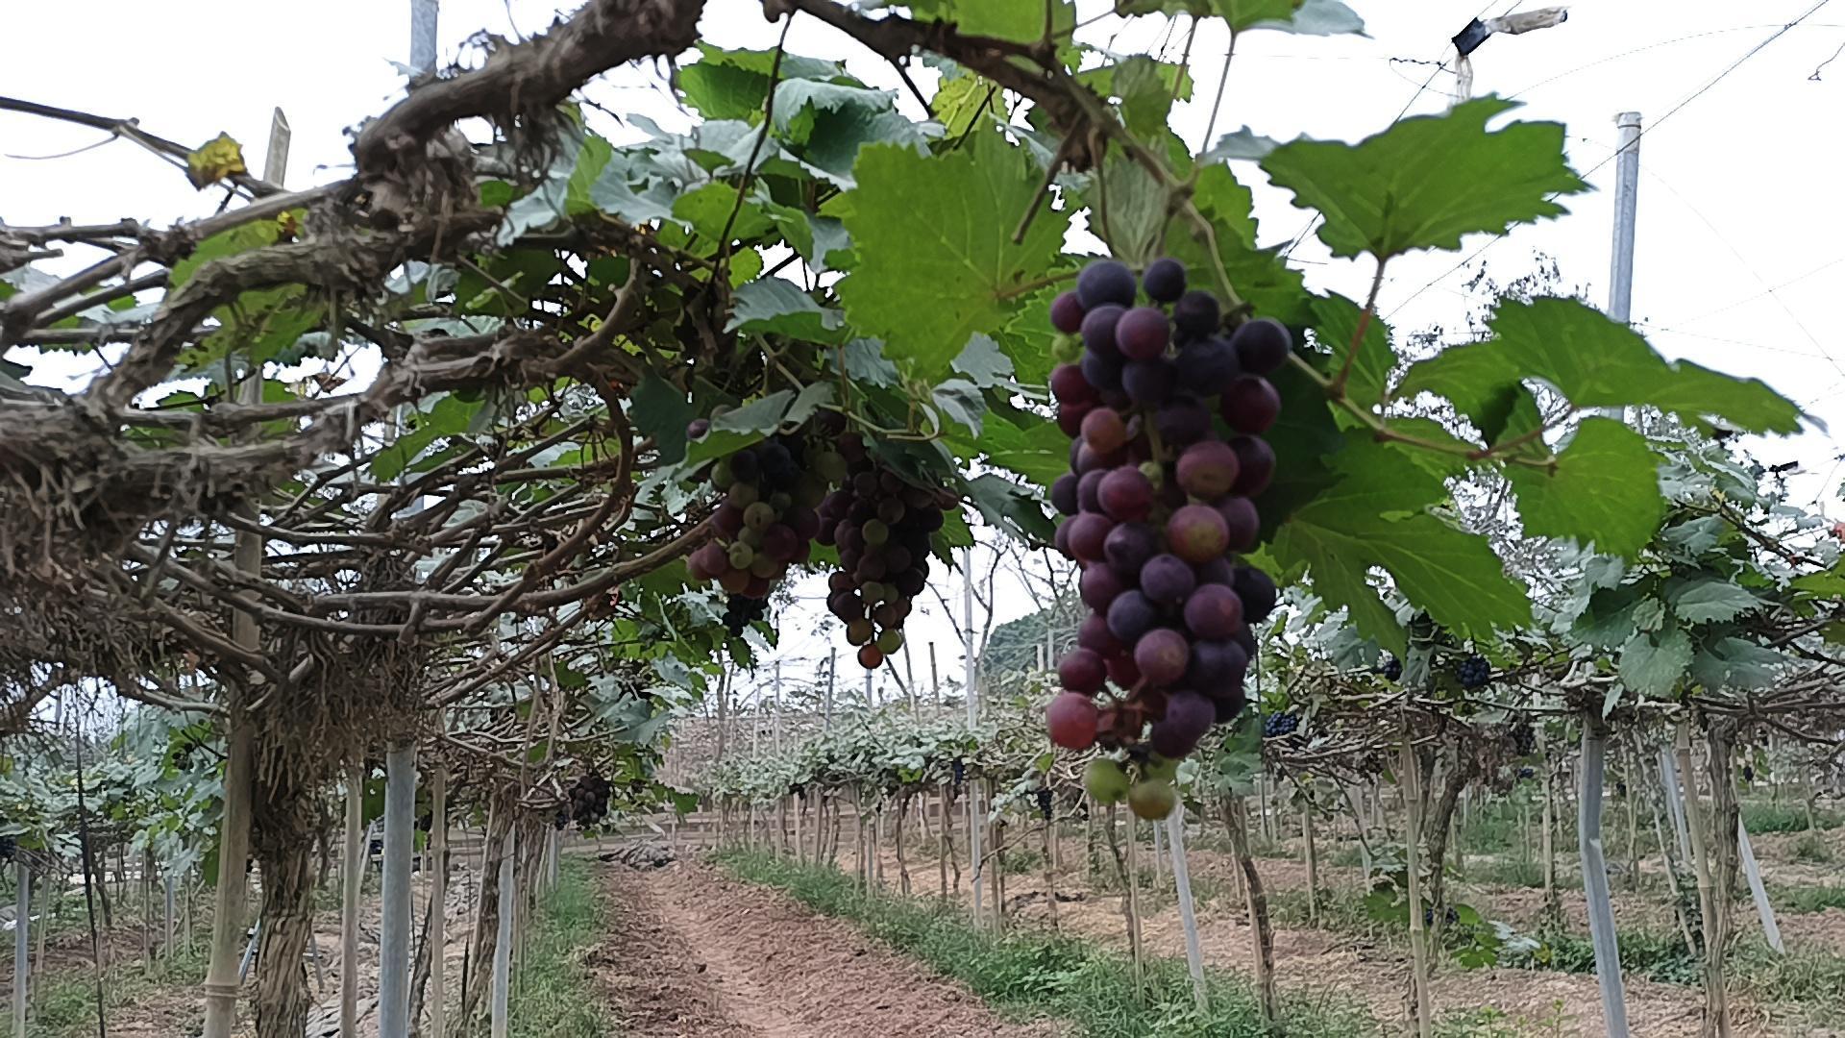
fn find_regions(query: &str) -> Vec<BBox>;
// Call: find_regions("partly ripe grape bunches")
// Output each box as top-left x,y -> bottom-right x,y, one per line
687,405 -> 840,635
814,429 -> 957,669
1047,259 -> 1289,820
